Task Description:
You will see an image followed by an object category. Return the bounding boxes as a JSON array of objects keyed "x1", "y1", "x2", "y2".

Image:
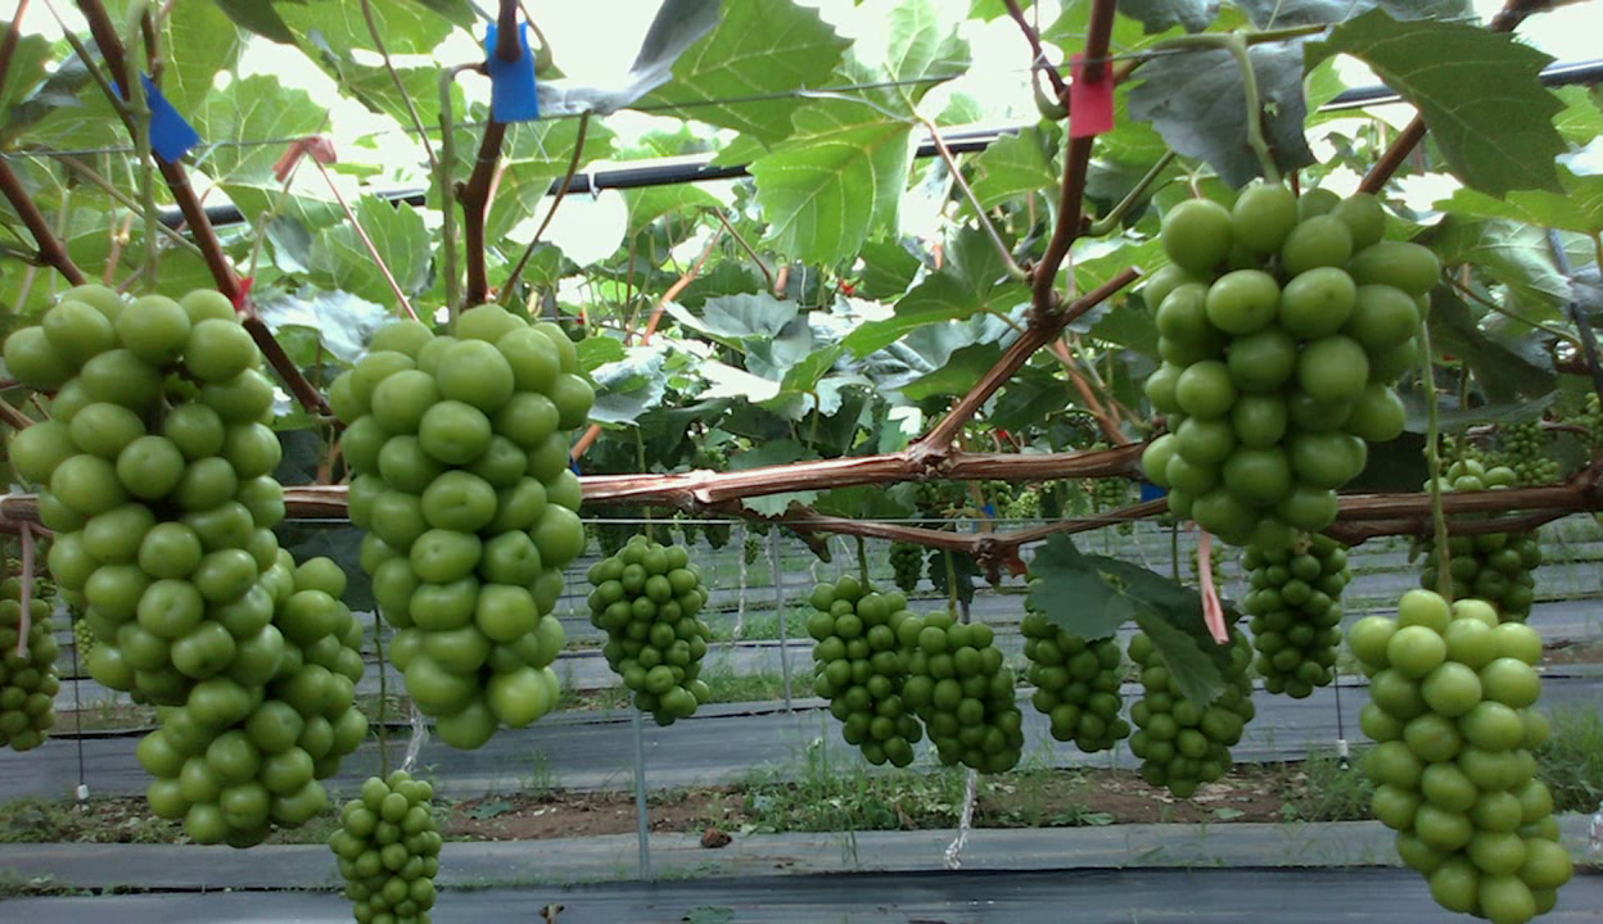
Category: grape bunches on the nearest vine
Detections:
[
  {"x1": 135, "y1": 549, "x2": 369, "y2": 851},
  {"x1": 4, "y1": 284, "x2": 295, "y2": 730},
  {"x1": 1349, "y1": 588, "x2": 1575, "y2": 923},
  {"x1": 1139, "y1": 184, "x2": 1441, "y2": 549},
  {"x1": 328, "y1": 303, "x2": 596, "y2": 751}
]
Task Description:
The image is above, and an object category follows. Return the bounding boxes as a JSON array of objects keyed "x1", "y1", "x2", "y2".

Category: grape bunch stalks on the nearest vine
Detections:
[
  {"x1": 1157, "y1": 33, "x2": 1282, "y2": 182},
  {"x1": 118, "y1": 4, "x2": 161, "y2": 295},
  {"x1": 1417, "y1": 321, "x2": 1453, "y2": 611},
  {"x1": 435, "y1": 62, "x2": 480, "y2": 334}
]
